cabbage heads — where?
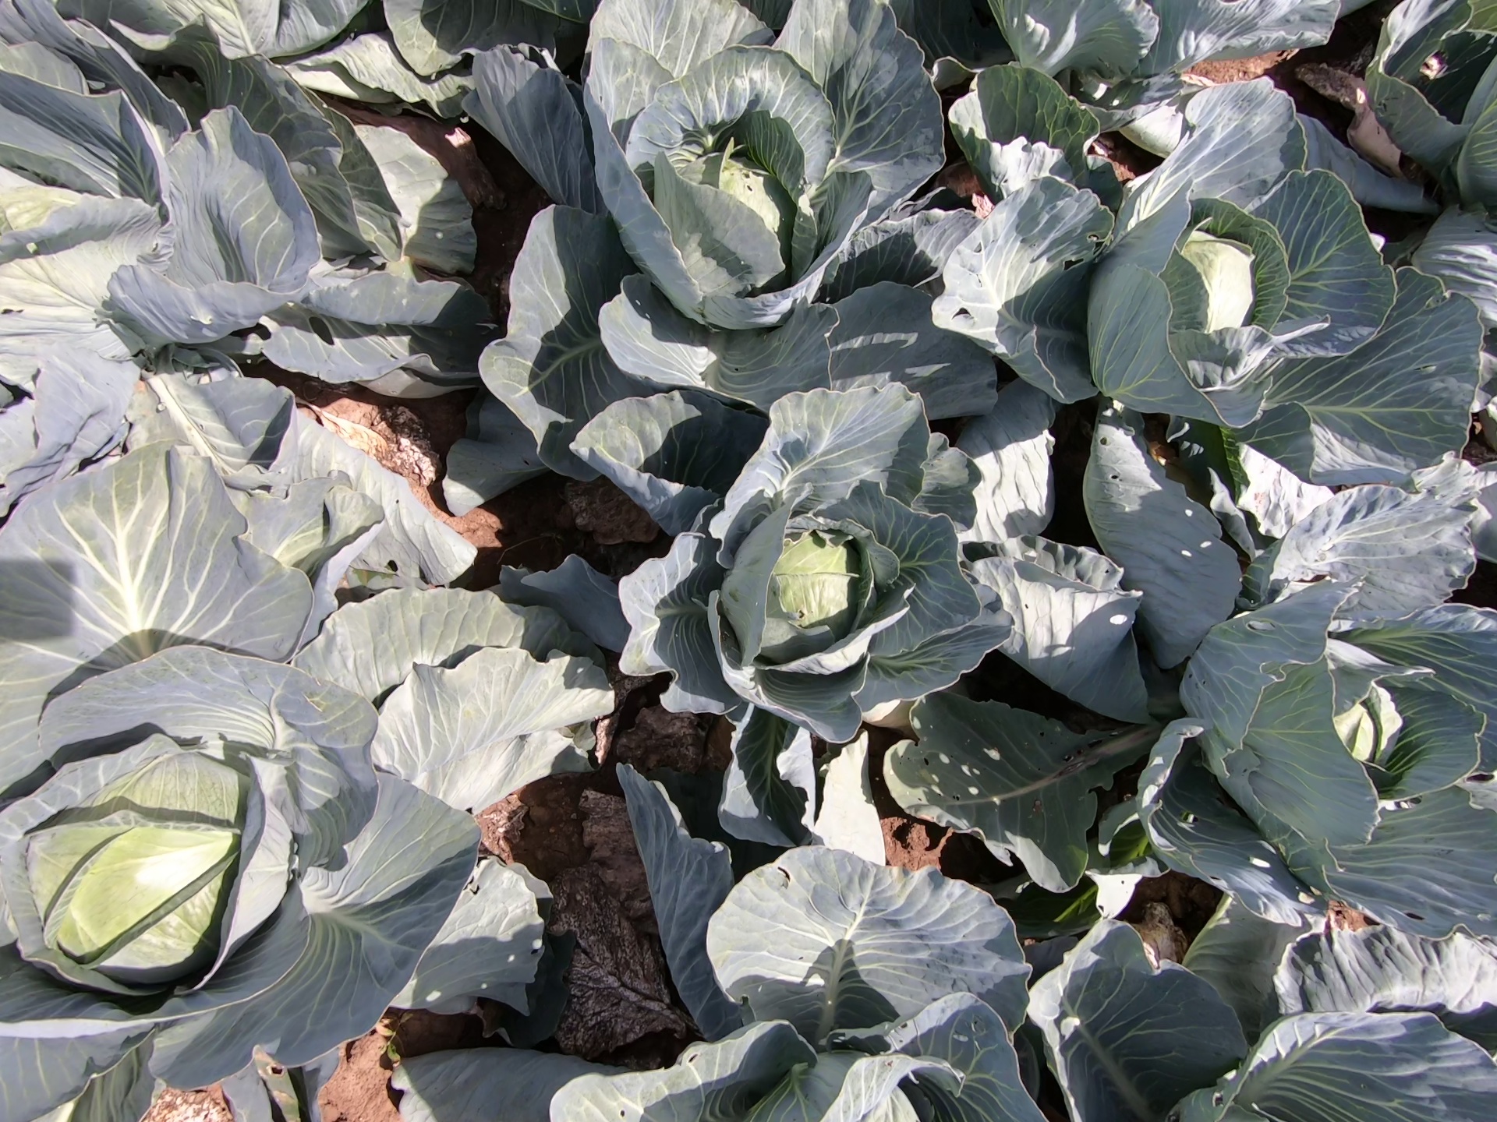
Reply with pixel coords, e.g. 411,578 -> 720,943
13,753 -> 288,986
730,521 -> 876,664
1253,654 -> 1403,791
0,182 -> 148,329
1121,222 -> 1263,386
671,149 -> 805,282
741,1050 -> 922,1121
